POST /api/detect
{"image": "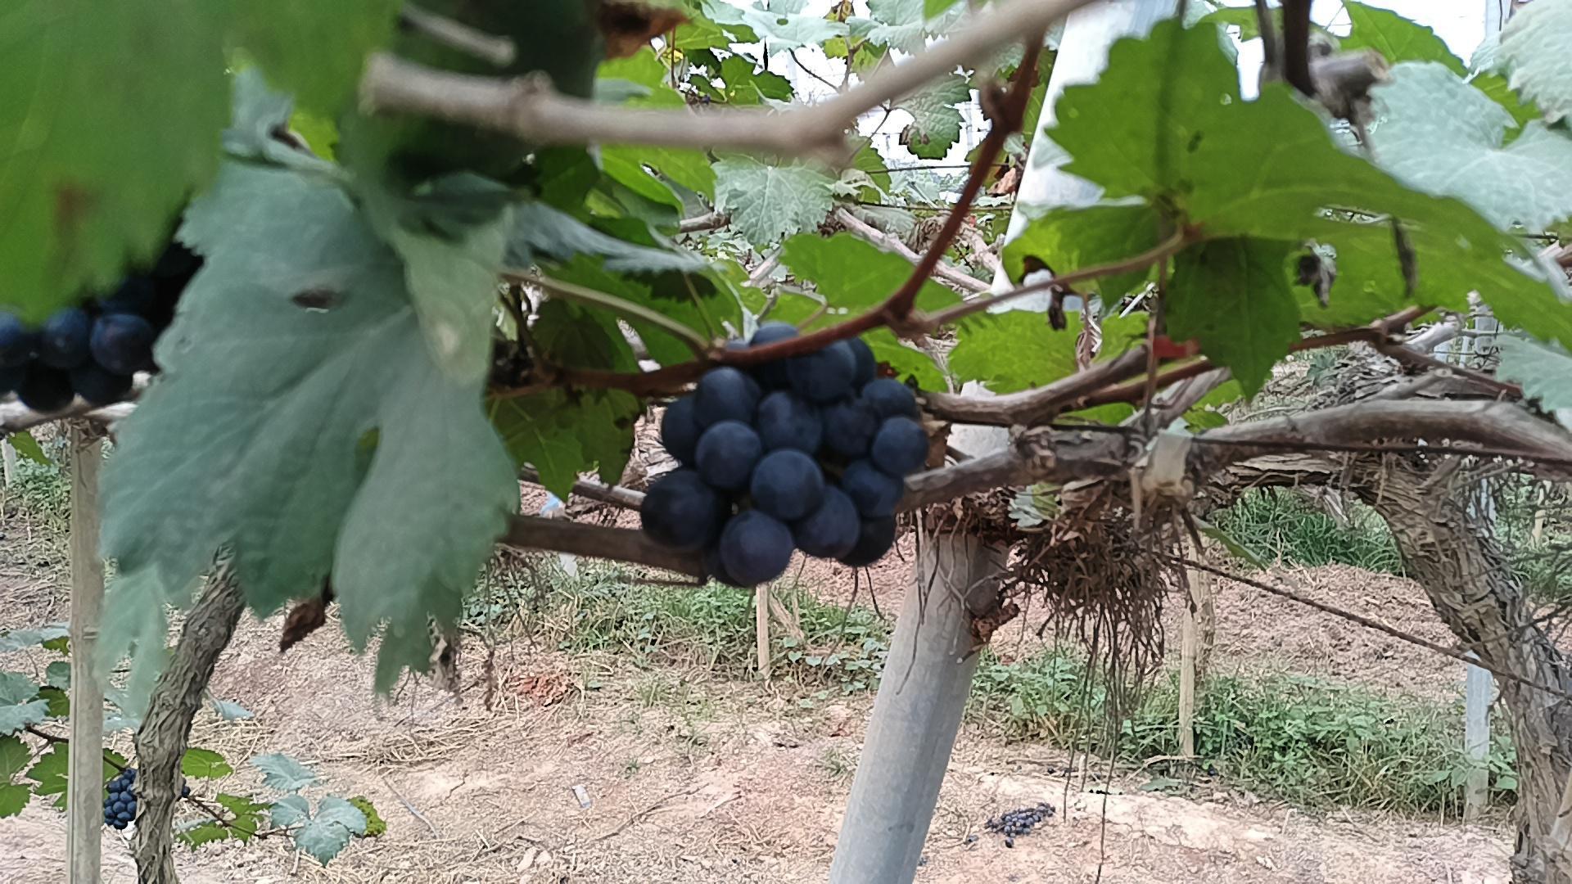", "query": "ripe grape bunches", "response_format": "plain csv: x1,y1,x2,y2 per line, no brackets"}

0,241,203,430
639,322,928,586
